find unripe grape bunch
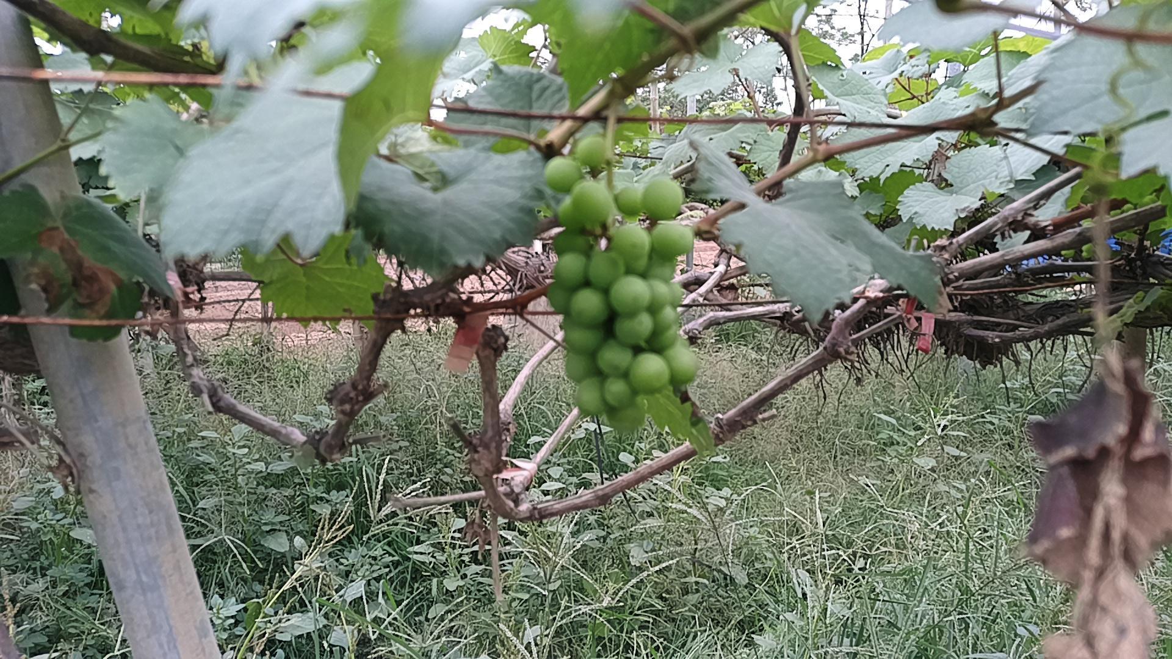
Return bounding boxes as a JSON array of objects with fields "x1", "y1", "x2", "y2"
[{"x1": 541, "y1": 139, "x2": 696, "y2": 431}]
